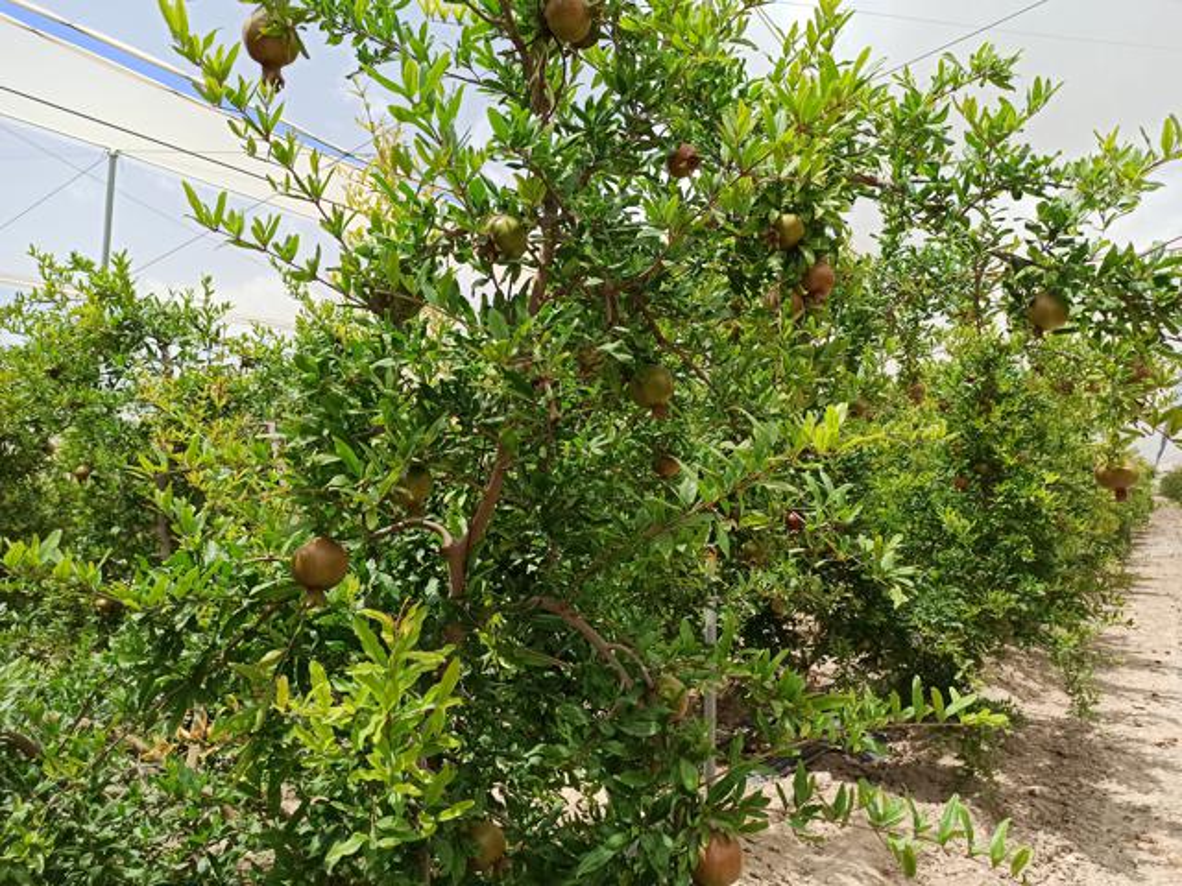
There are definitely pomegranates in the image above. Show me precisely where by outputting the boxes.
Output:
[802,264,835,305]
[473,214,528,264]
[759,212,807,253]
[628,365,674,417]
[469,825,513,880]
[693,831,742,886]
[390,471,432,519]
[1031,293,1066,338]
[74,463,90,480]
[654,458,681,476]
[543,0,606,42]
[667,142,702,177]
[661,674,689,725]
[1093,461,1141,502]
[238,7,301,94]
[290,535,349,609]
[765,288,805,316]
